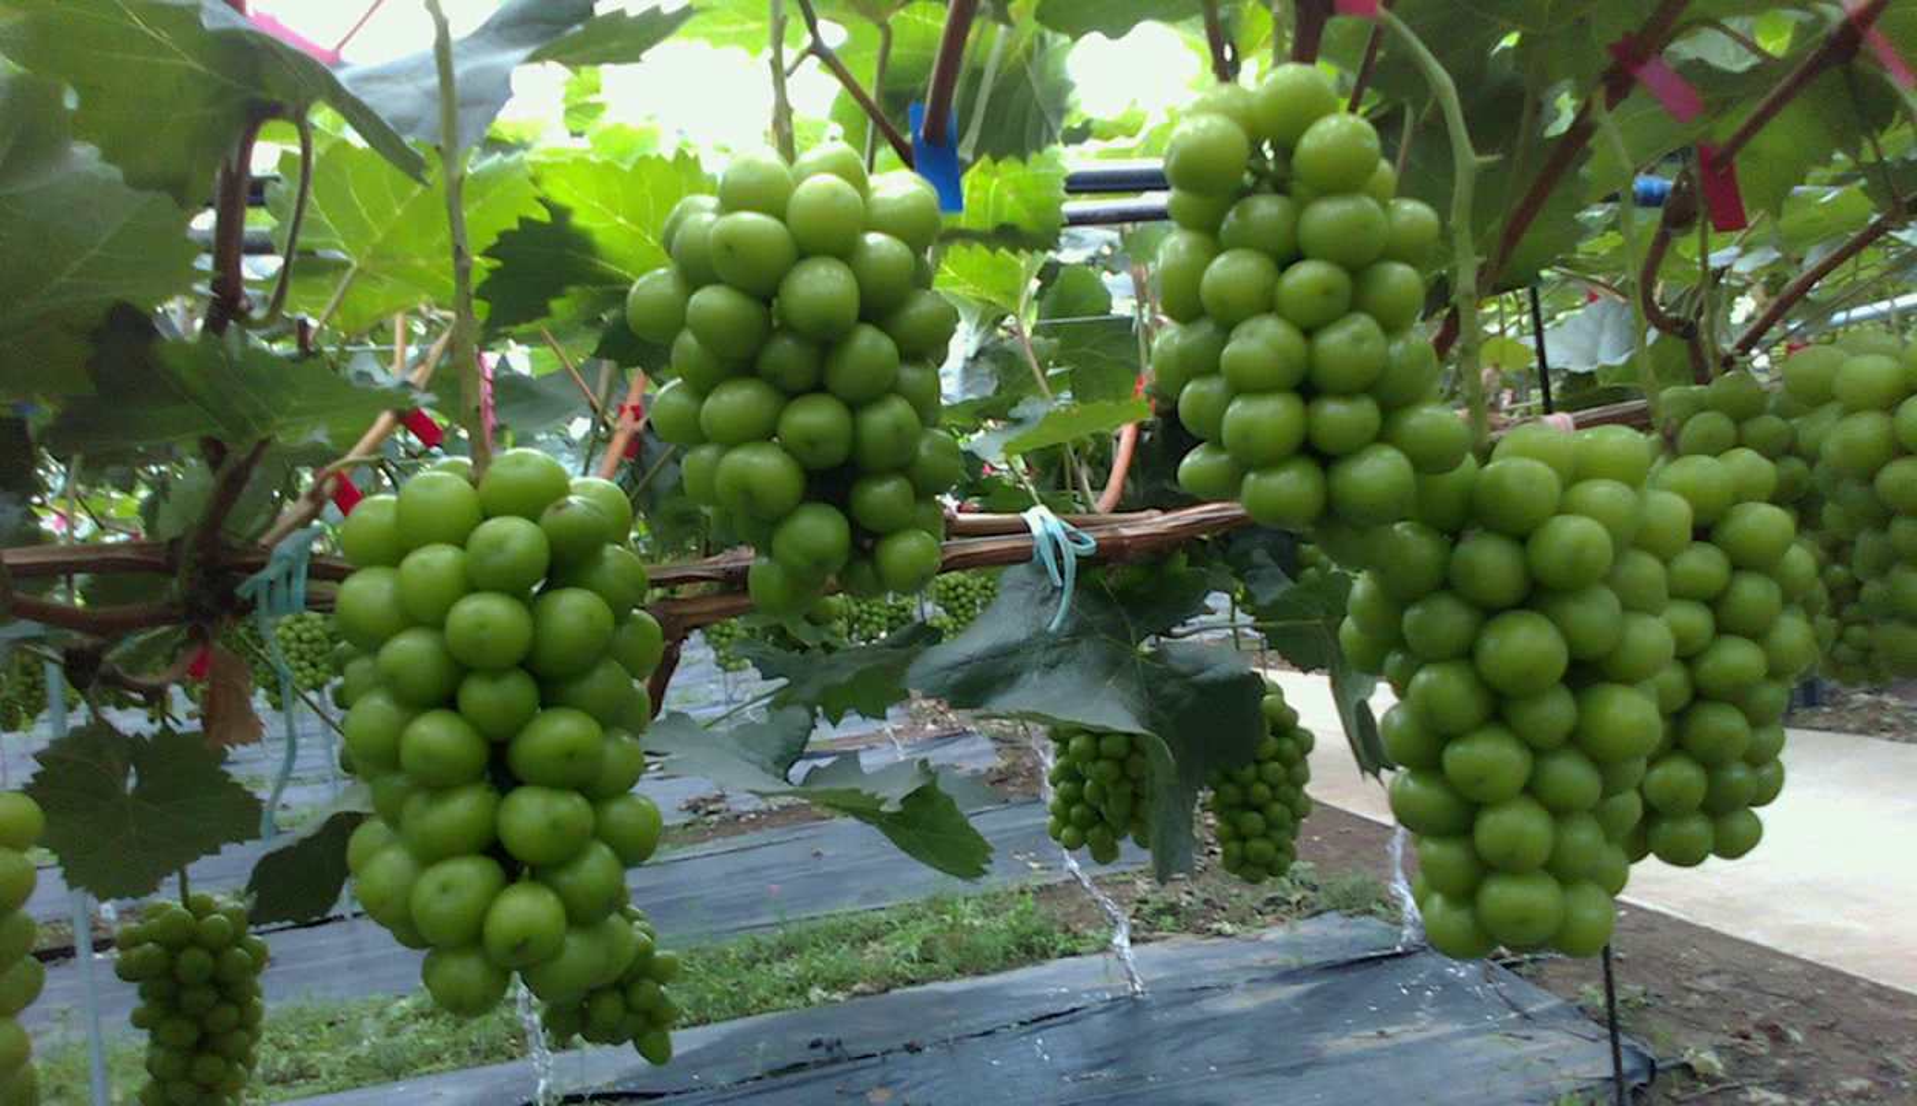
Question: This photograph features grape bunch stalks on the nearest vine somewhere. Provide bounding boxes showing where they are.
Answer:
[1373,3,1492,464]
[765,0,796,169]
[1591,83,1676,459]
[427,3,492,485]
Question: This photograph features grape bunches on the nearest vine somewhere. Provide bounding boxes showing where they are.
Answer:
[1779,327,1915,682]
[1621,435,1817,868]
[1338,421,1694,963]
[1146,61,1467,568]
[624,140,962,619]
[333,447,665,1017]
